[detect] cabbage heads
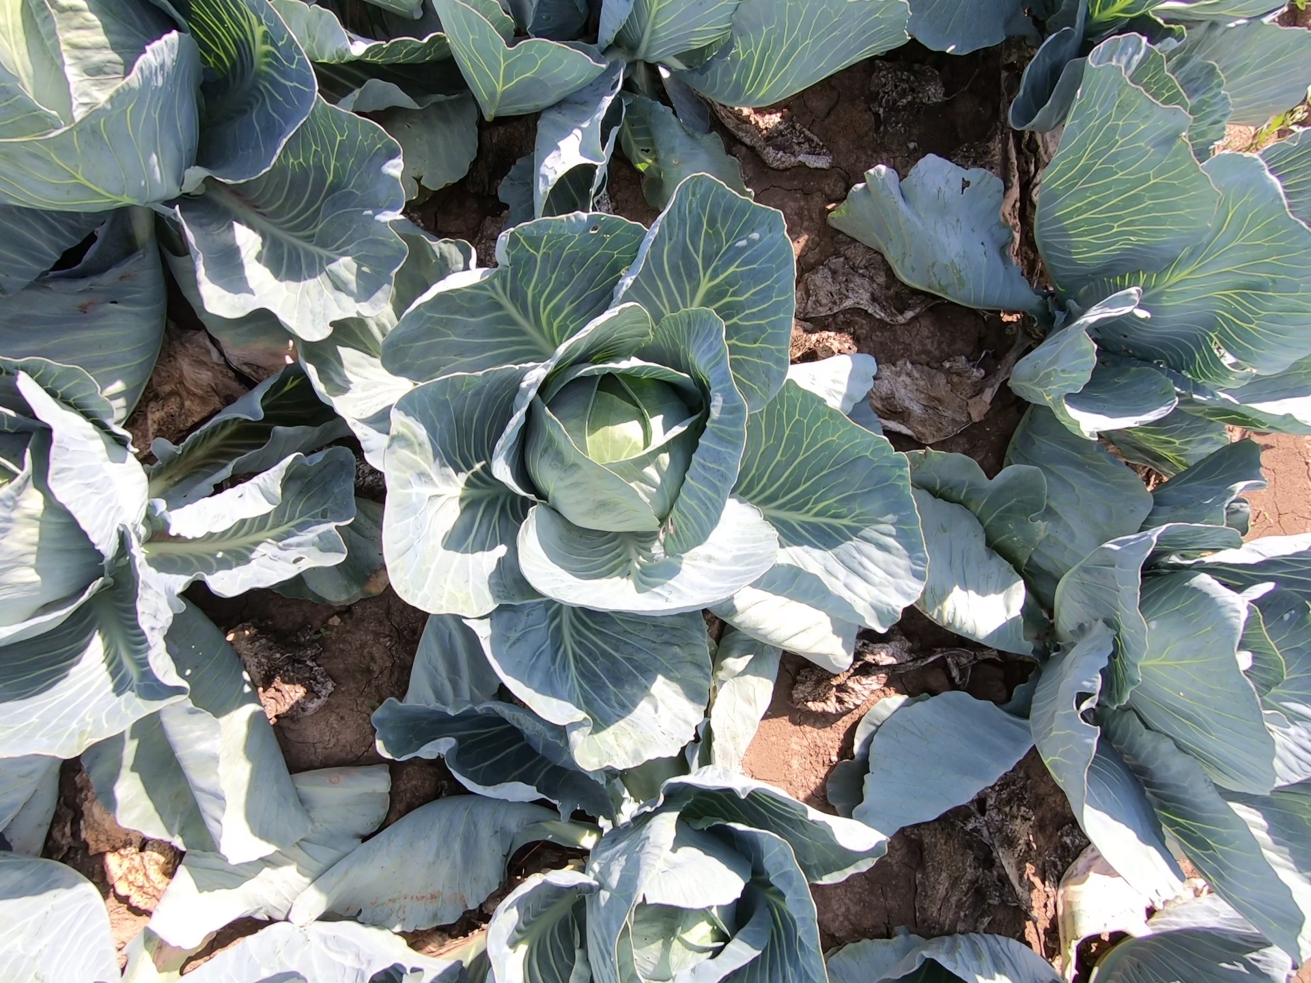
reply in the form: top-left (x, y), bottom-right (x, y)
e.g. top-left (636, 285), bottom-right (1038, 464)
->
top-left (1, 2), bottom-right (173, 200)
top-left (548, 372), bottom-right (696, 524)
top-left (605, 832), bottom-right (740, 982)
top-left (1, 446), bottom-right (106, 616)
